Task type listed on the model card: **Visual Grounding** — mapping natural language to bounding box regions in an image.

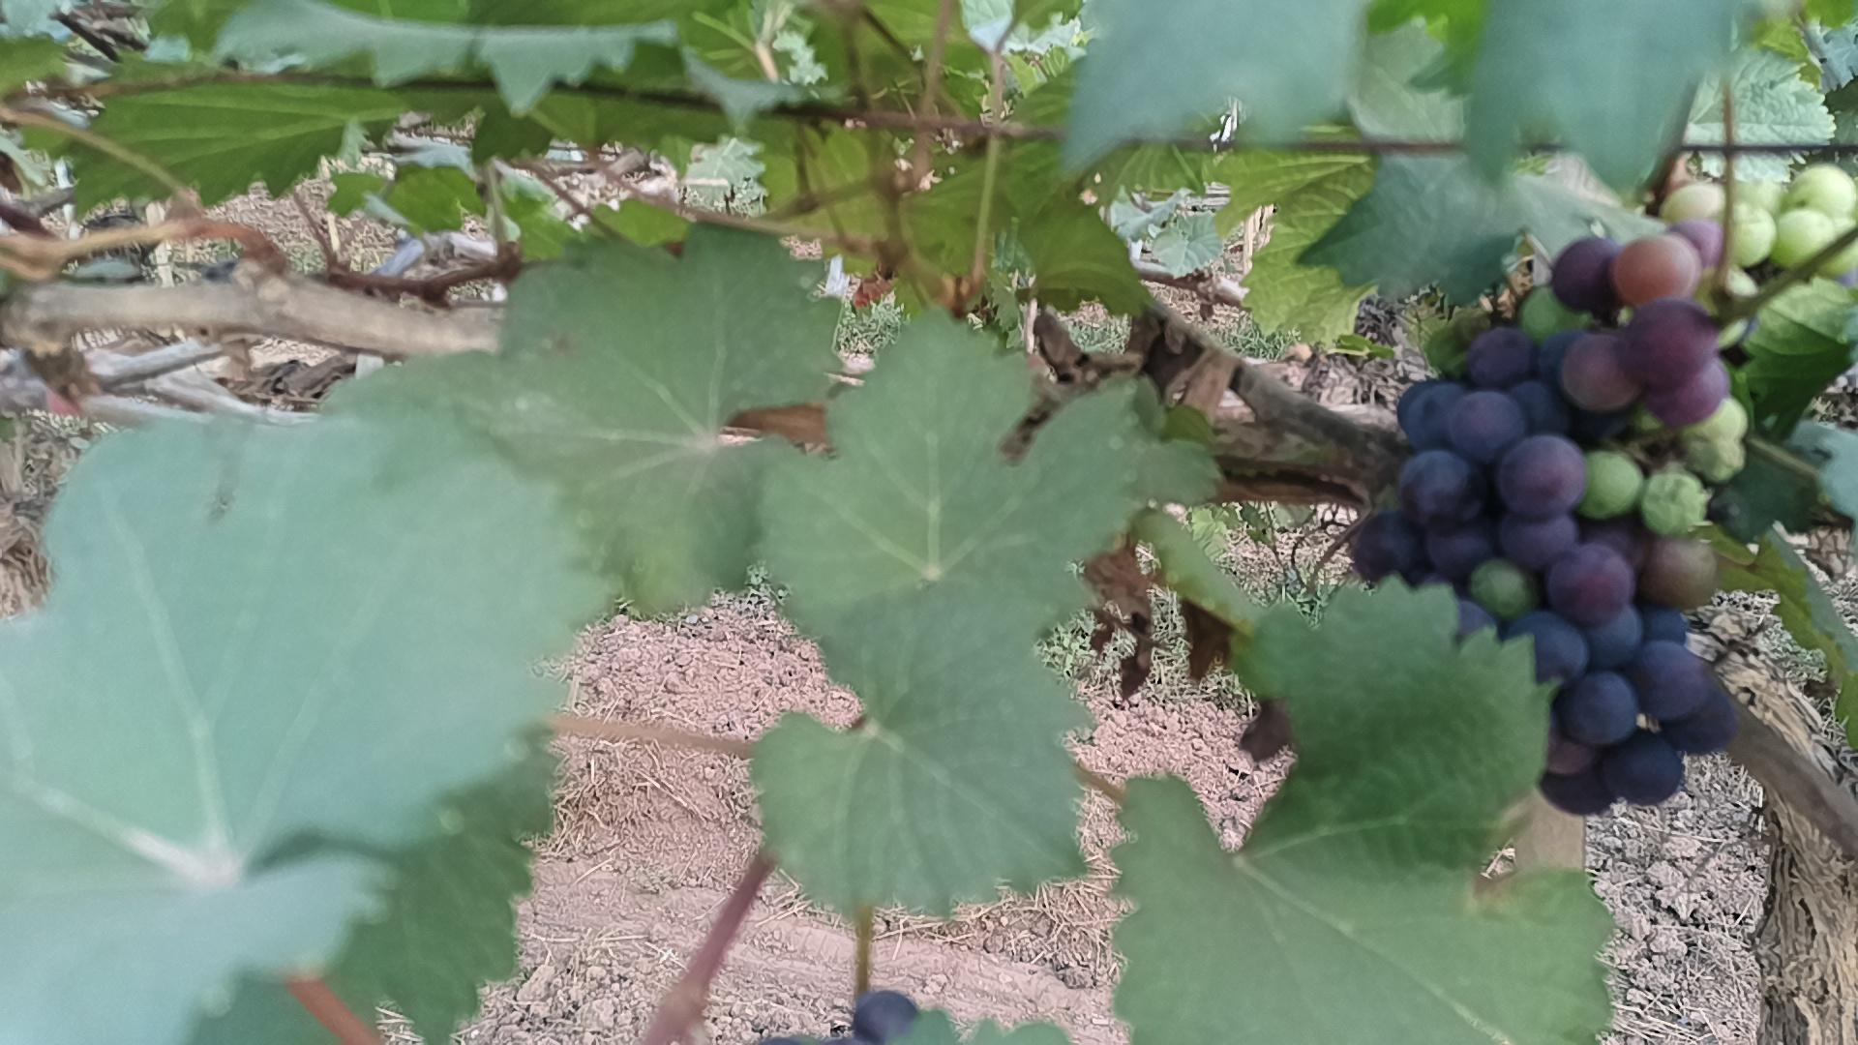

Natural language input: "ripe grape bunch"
[821,987,937,1044]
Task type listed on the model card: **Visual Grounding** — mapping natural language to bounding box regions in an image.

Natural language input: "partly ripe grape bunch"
[1348,163,1857,819]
